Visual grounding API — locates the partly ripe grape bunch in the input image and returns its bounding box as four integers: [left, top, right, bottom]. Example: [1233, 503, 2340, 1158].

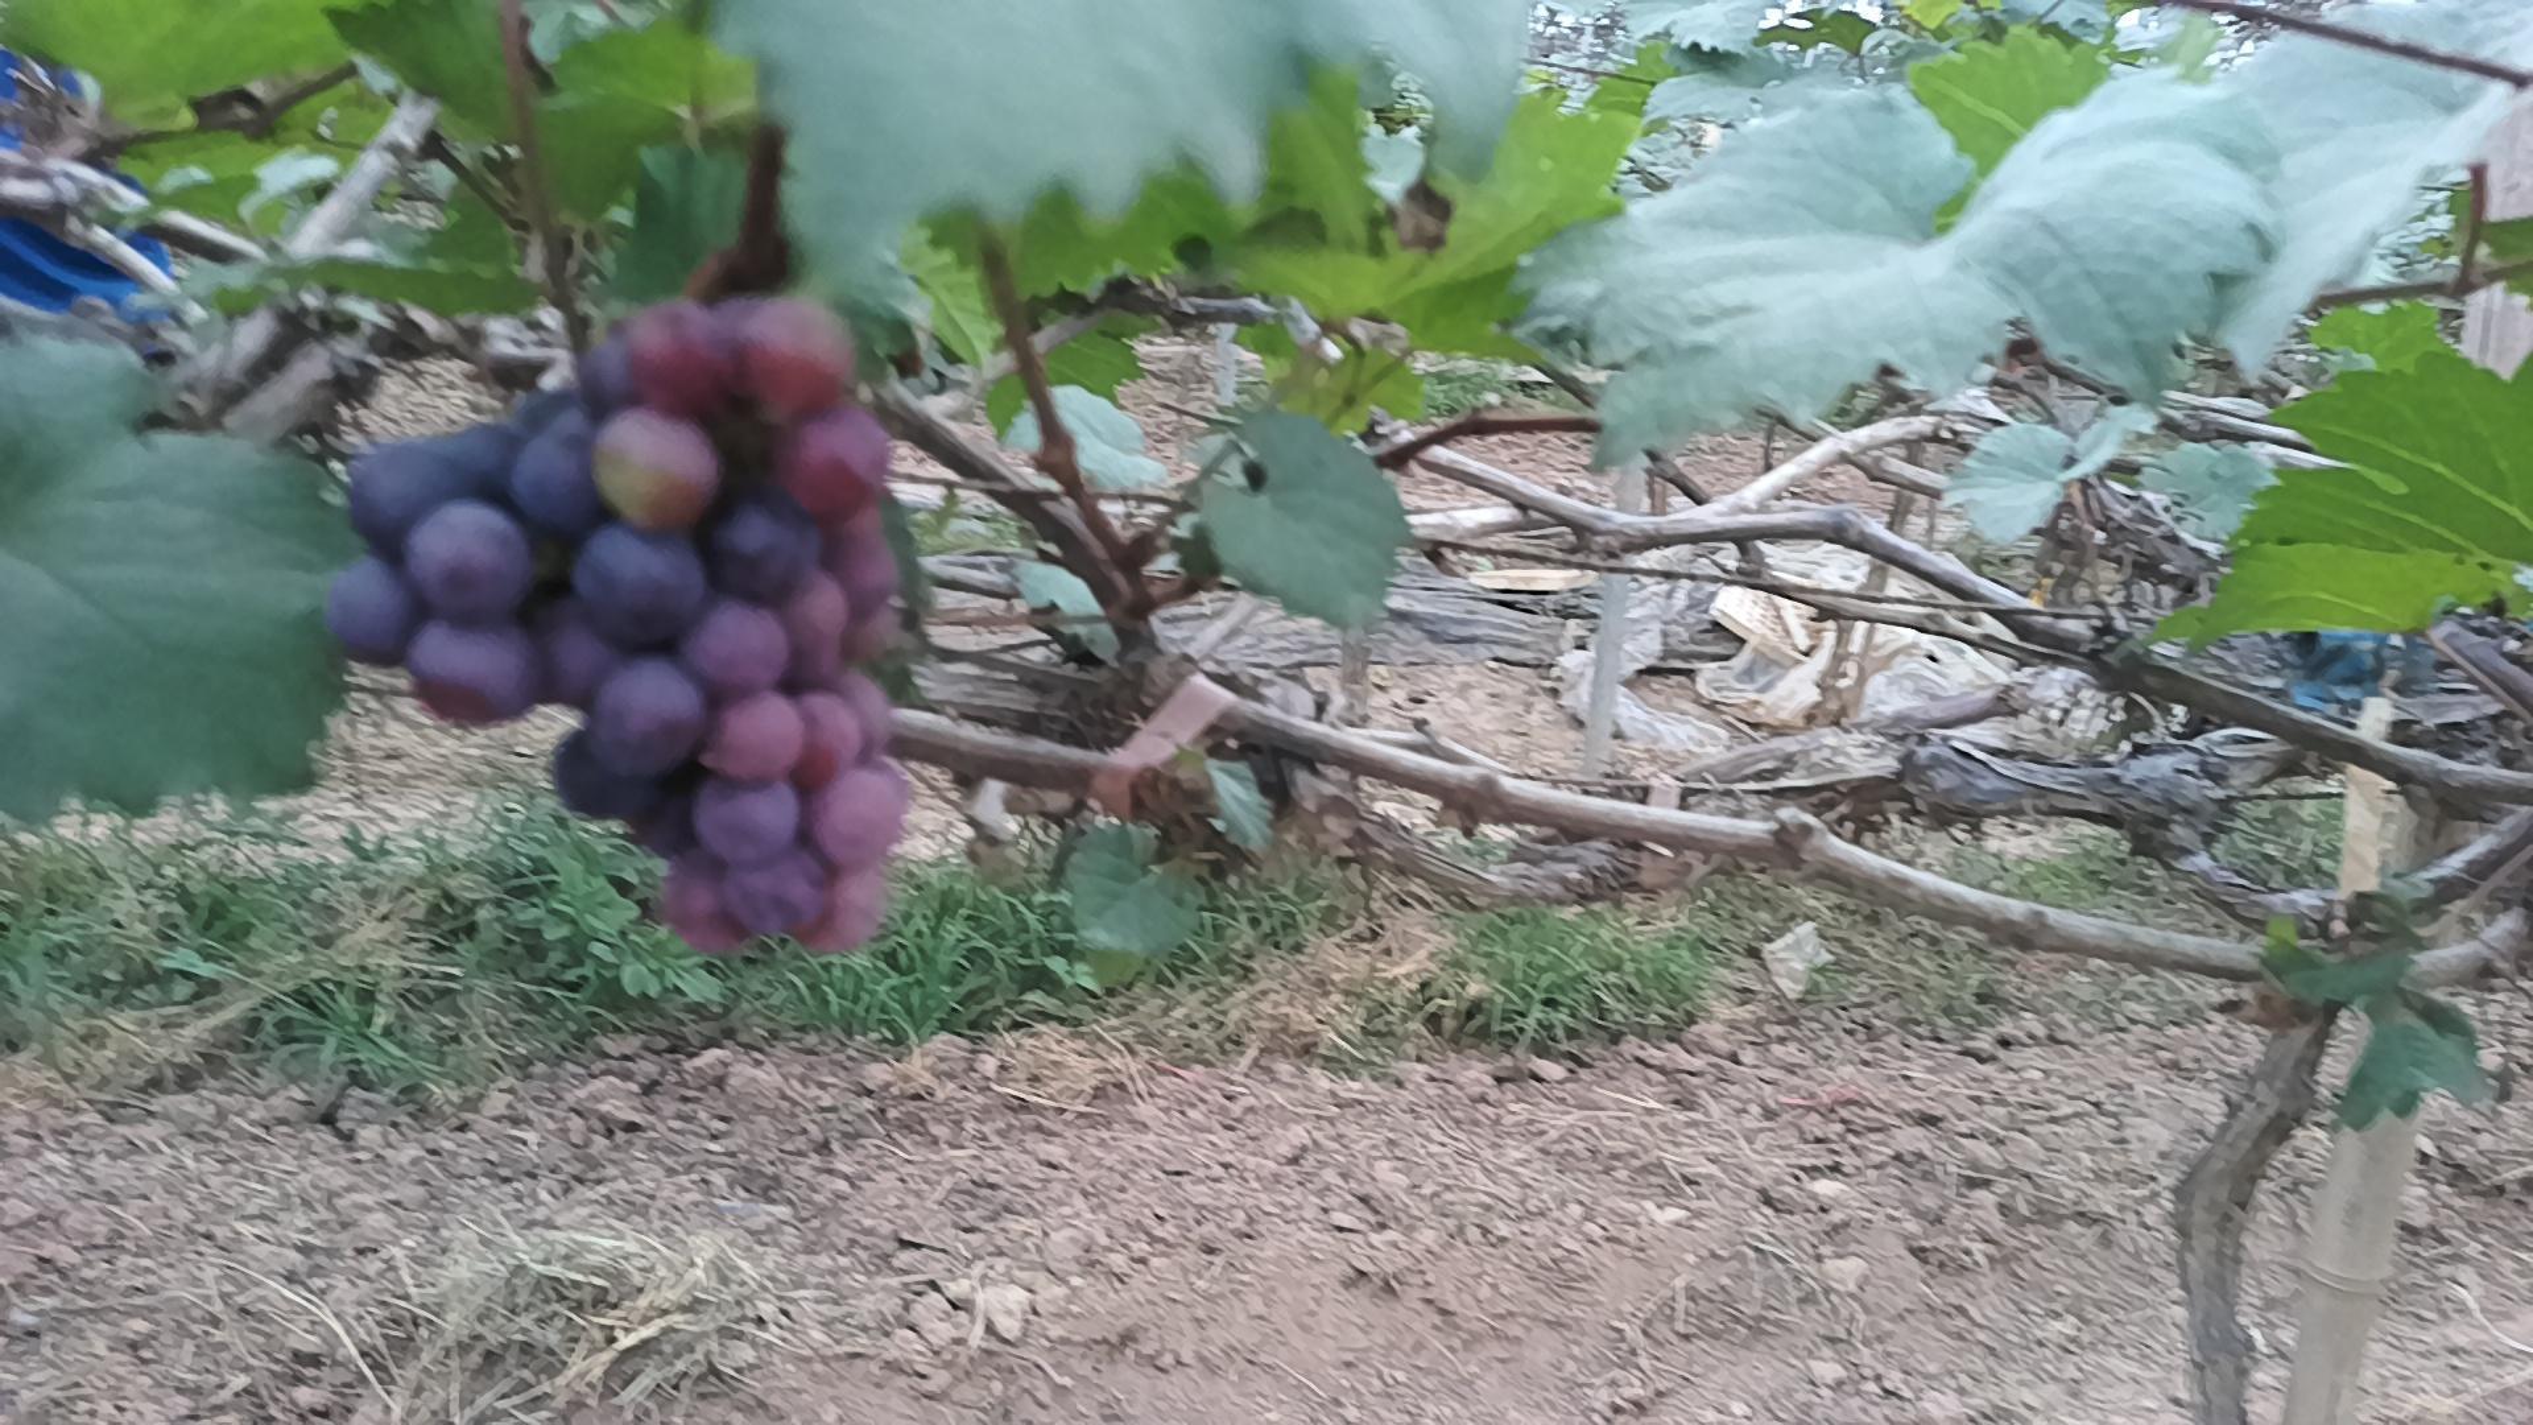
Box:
[326, 297, 910, 951]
